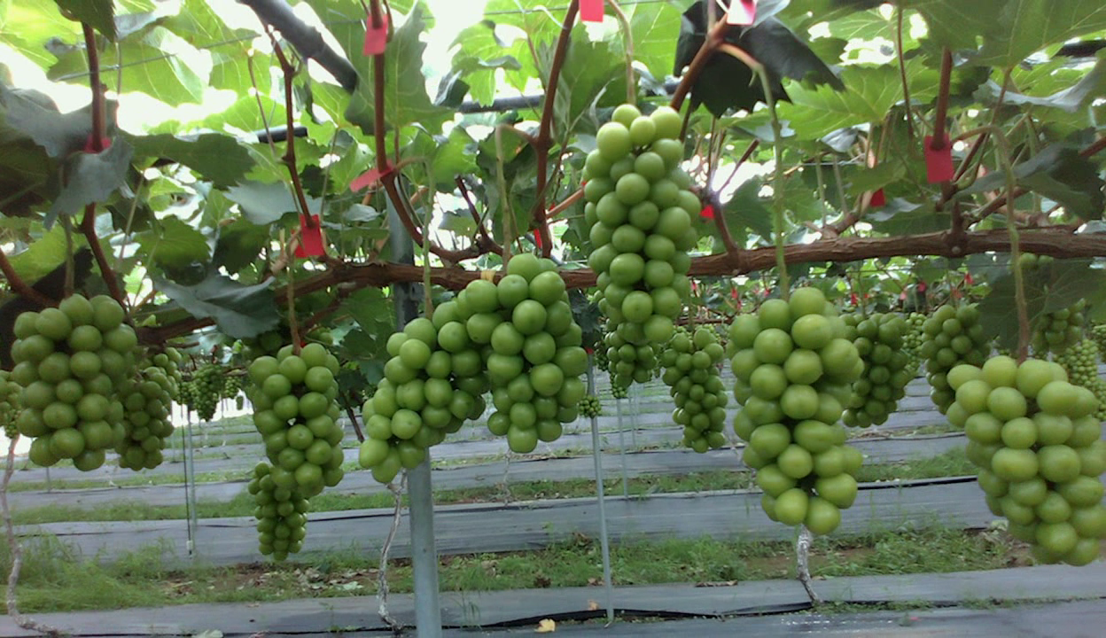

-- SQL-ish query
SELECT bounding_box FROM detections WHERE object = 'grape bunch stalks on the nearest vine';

[62,216,73,297]
[285,232,300,355]
[721,44,790,300]
[495,123,529,266]
[609,0,635,105]
[405,155,434,320]
[958,126,1028,363]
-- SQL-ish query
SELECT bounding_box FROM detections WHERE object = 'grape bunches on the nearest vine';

[946,356,1105,566]
[11,295,136,471]
[249,342,344,496]
[584,104,700,343]
[357,299,491,483]
[727,287,865,535]
[456,253,589,455]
